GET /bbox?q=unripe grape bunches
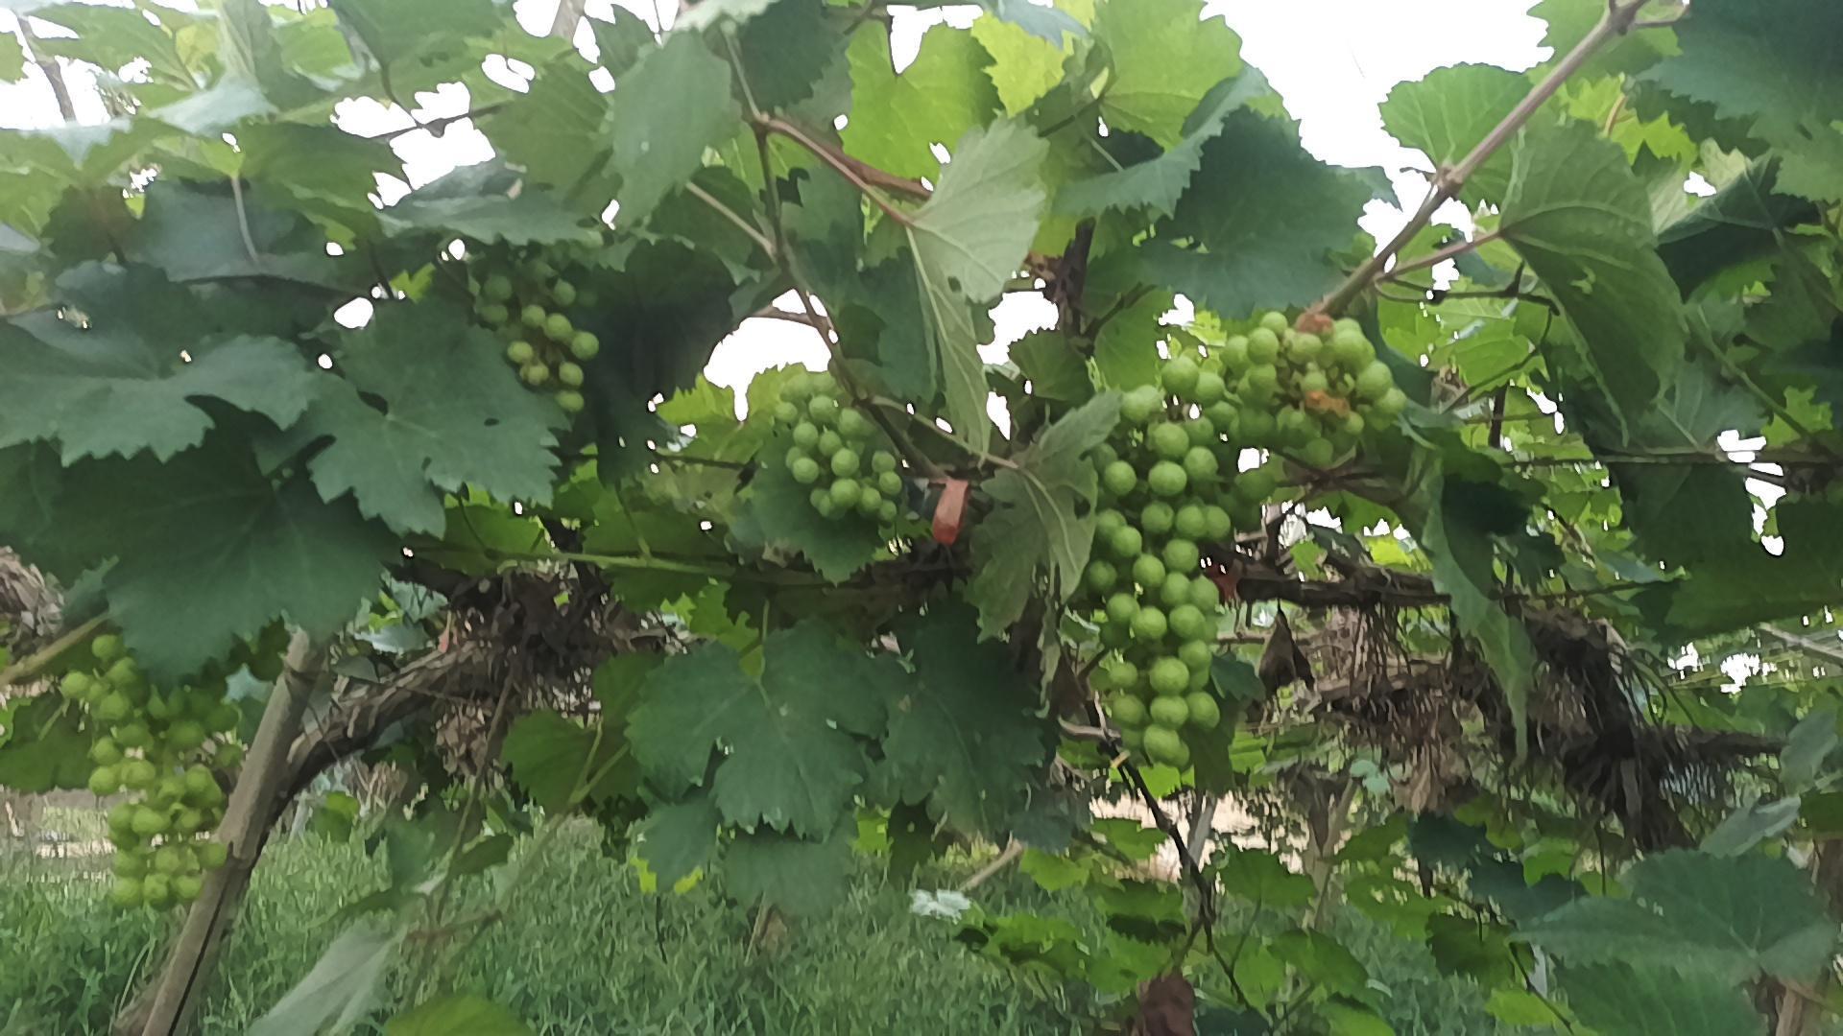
[772,371,902,524]
[1083,314,1406,768]
[58,634,243,906]
[465,251,600,413]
